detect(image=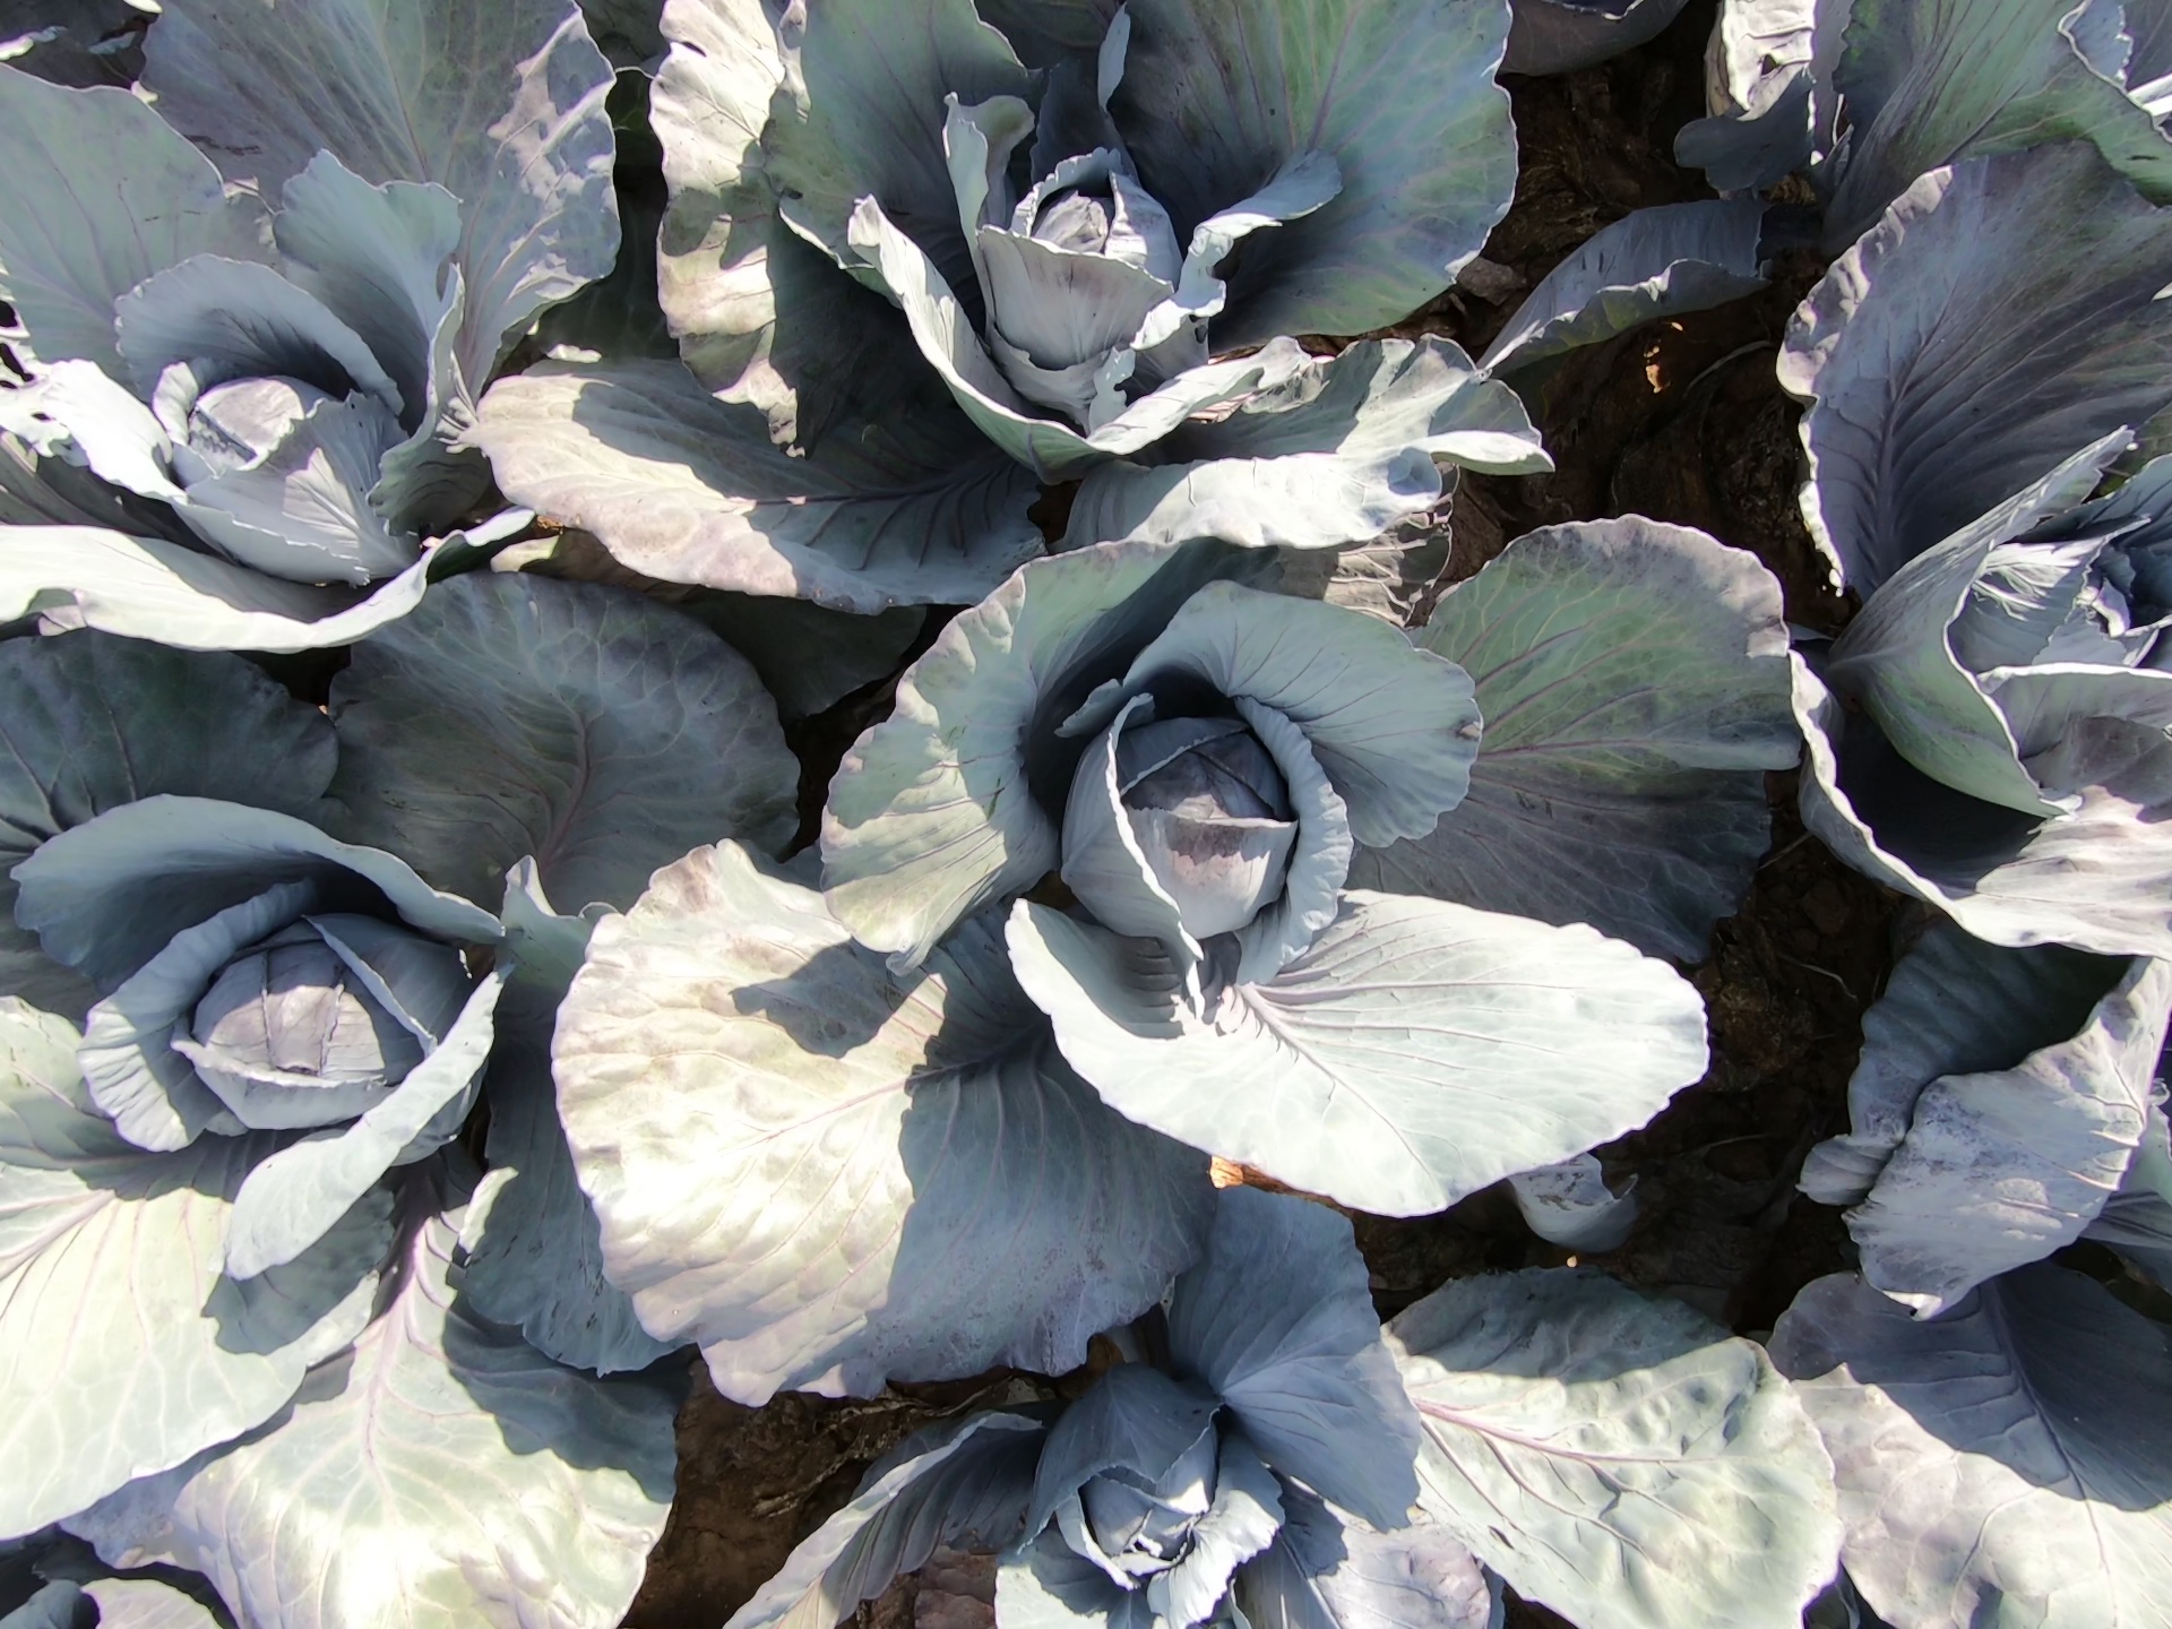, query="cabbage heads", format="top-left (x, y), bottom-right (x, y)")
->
top-left (1925, 546), bottom-right (2136, 741)
top-left (997, 174), bottom-right (1183, 356)
top-left (189, 926), bottom-right (464, 1123)
top-left (1075, 1395), bottom-right (1219, 1561)
top-left (1066, 723), bottom-right (1300, 934)
top-left (173, 373), bottom-right (390, 559)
